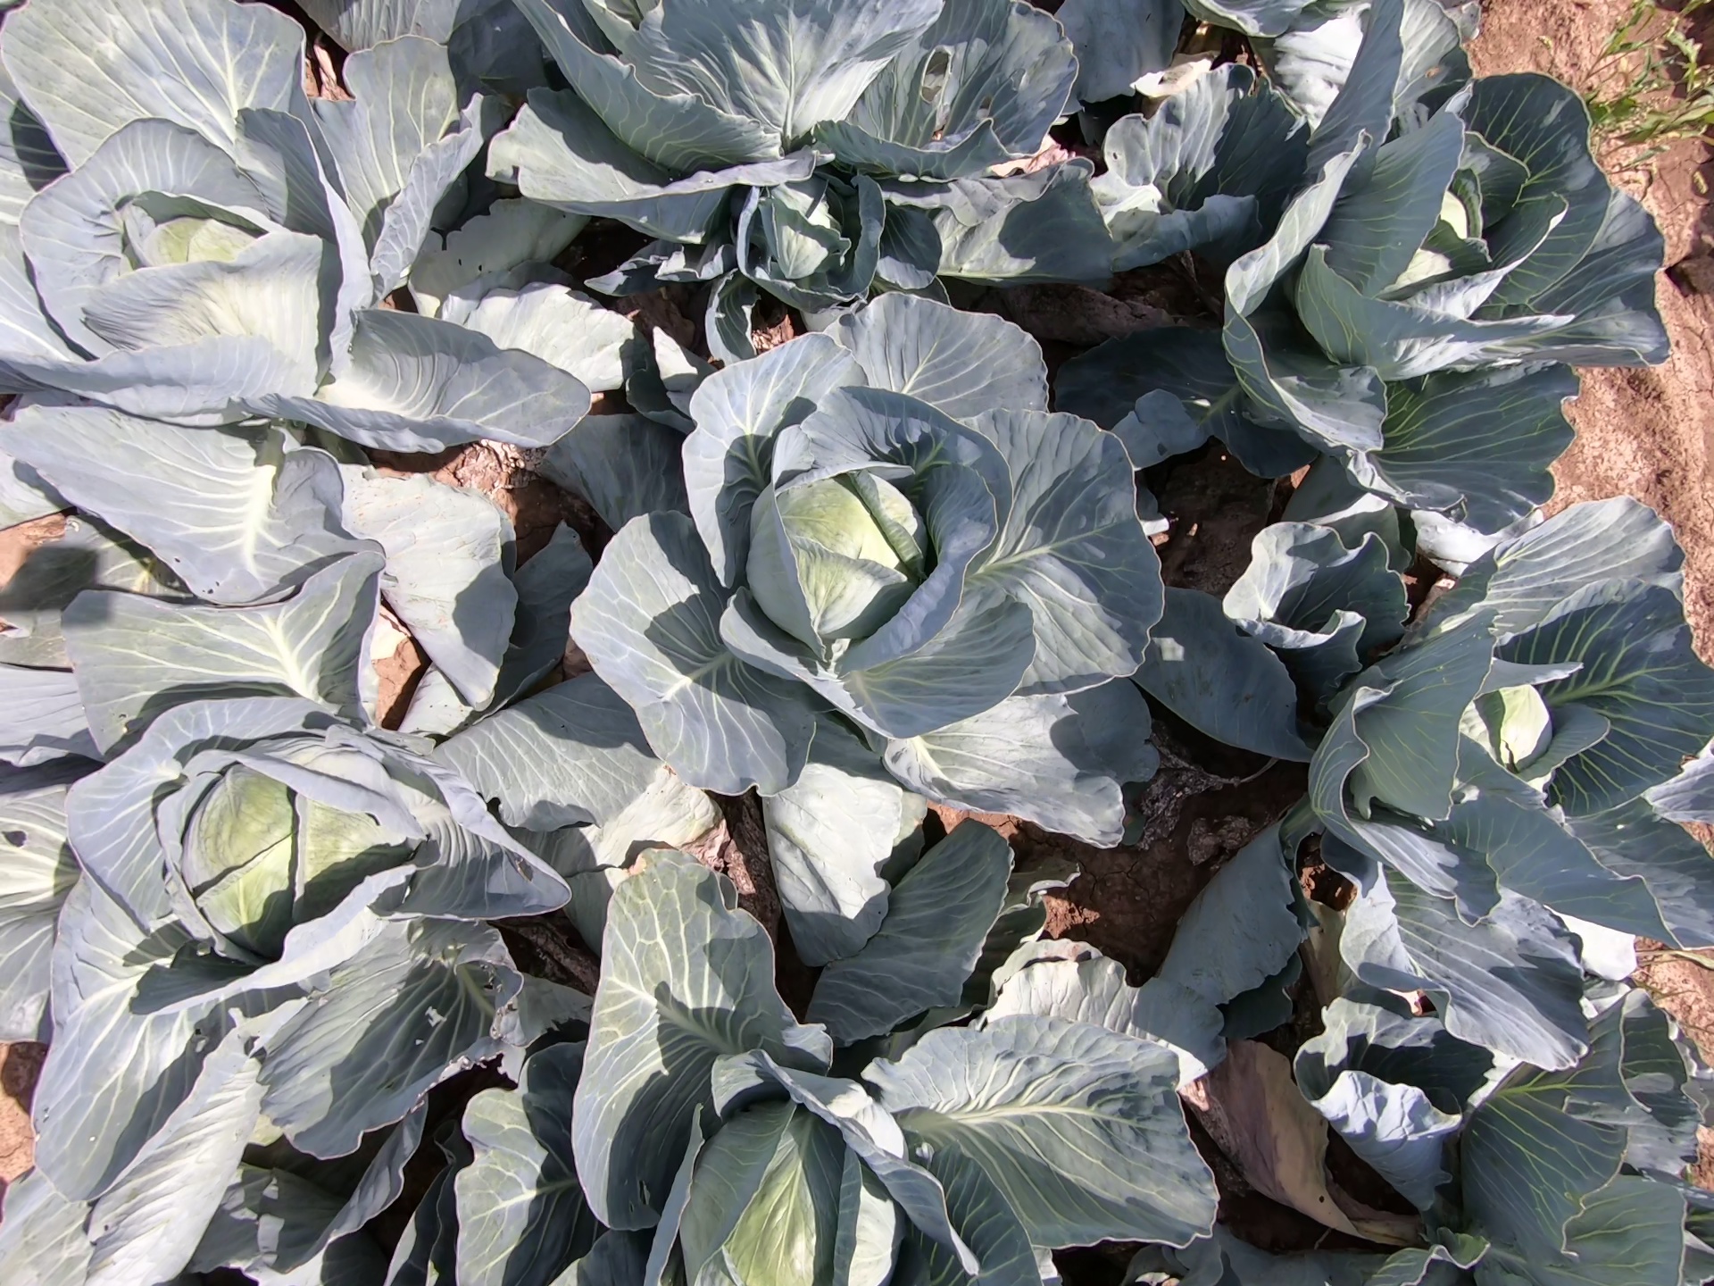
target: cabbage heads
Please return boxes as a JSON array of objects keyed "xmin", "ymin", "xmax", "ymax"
[
  {"xmin": 1342, "ymin": 167, "xmax": 1471, "ymax": 313},
  {"xmin": 675, "ymin": 1092, "xmax": 903, "ymax": 1284},
  {"xmin": 92, "ymin": 205, "xmax": 324, "ymax": 404},
  {"xmin": 1401, "ymin": 656, "xmax": 1552, "ymax": 815},
  {"xmin": 752, "ymin": 455, "xmax": 928, "ymax": 639},
  {"xmin": 177, "ymin": 737, "xmax": 414, "ymax": 964}
]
